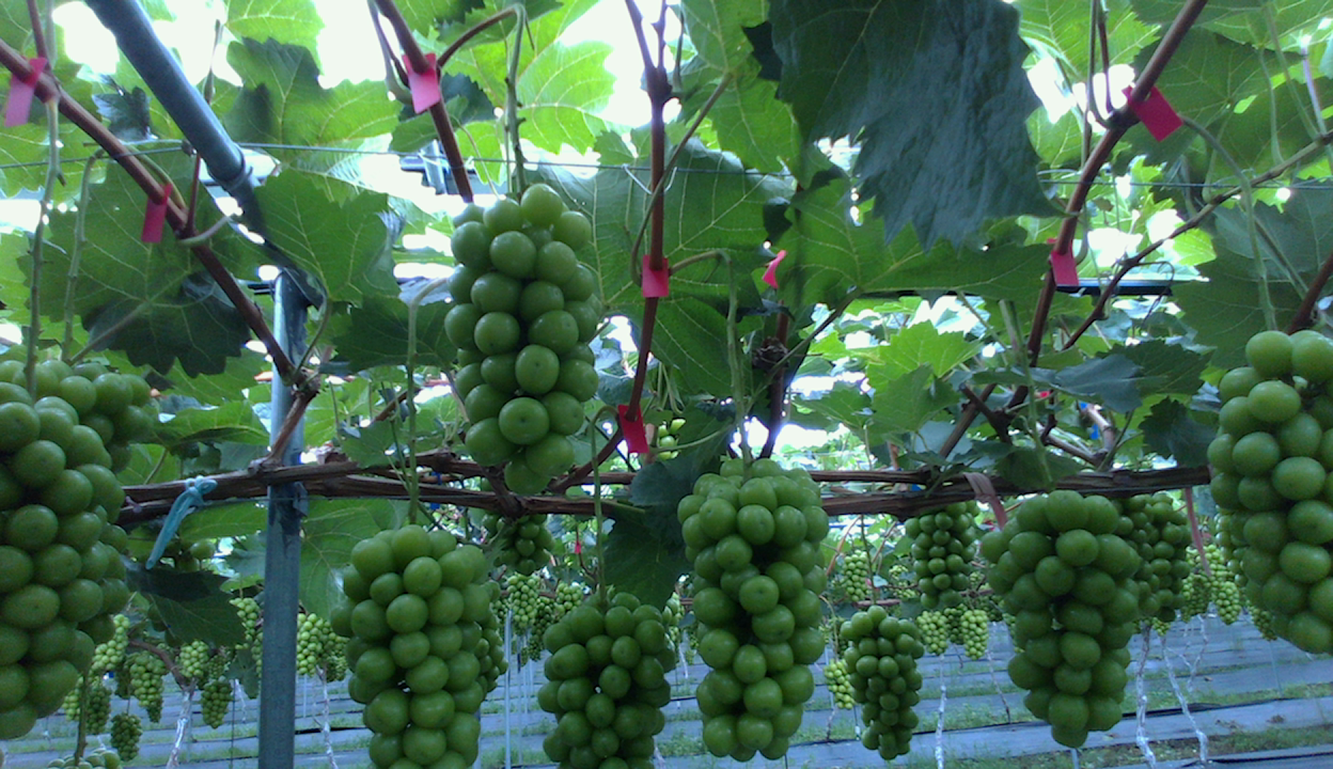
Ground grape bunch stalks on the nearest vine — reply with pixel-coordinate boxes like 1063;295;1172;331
60;153;98;362
672;249;752;483
406;278;445;524
1007;301;1054;491
25;104;67;395
1179;114;1276;329
440;2;526;198
592;406;617;611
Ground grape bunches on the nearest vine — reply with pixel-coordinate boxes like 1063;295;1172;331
1207;329;1332;653
981;489;1138;751
37;361;151;472
0;360;129;740
440;184;602;499
537;593;675;768
678;459;832;764
330;527;489;768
